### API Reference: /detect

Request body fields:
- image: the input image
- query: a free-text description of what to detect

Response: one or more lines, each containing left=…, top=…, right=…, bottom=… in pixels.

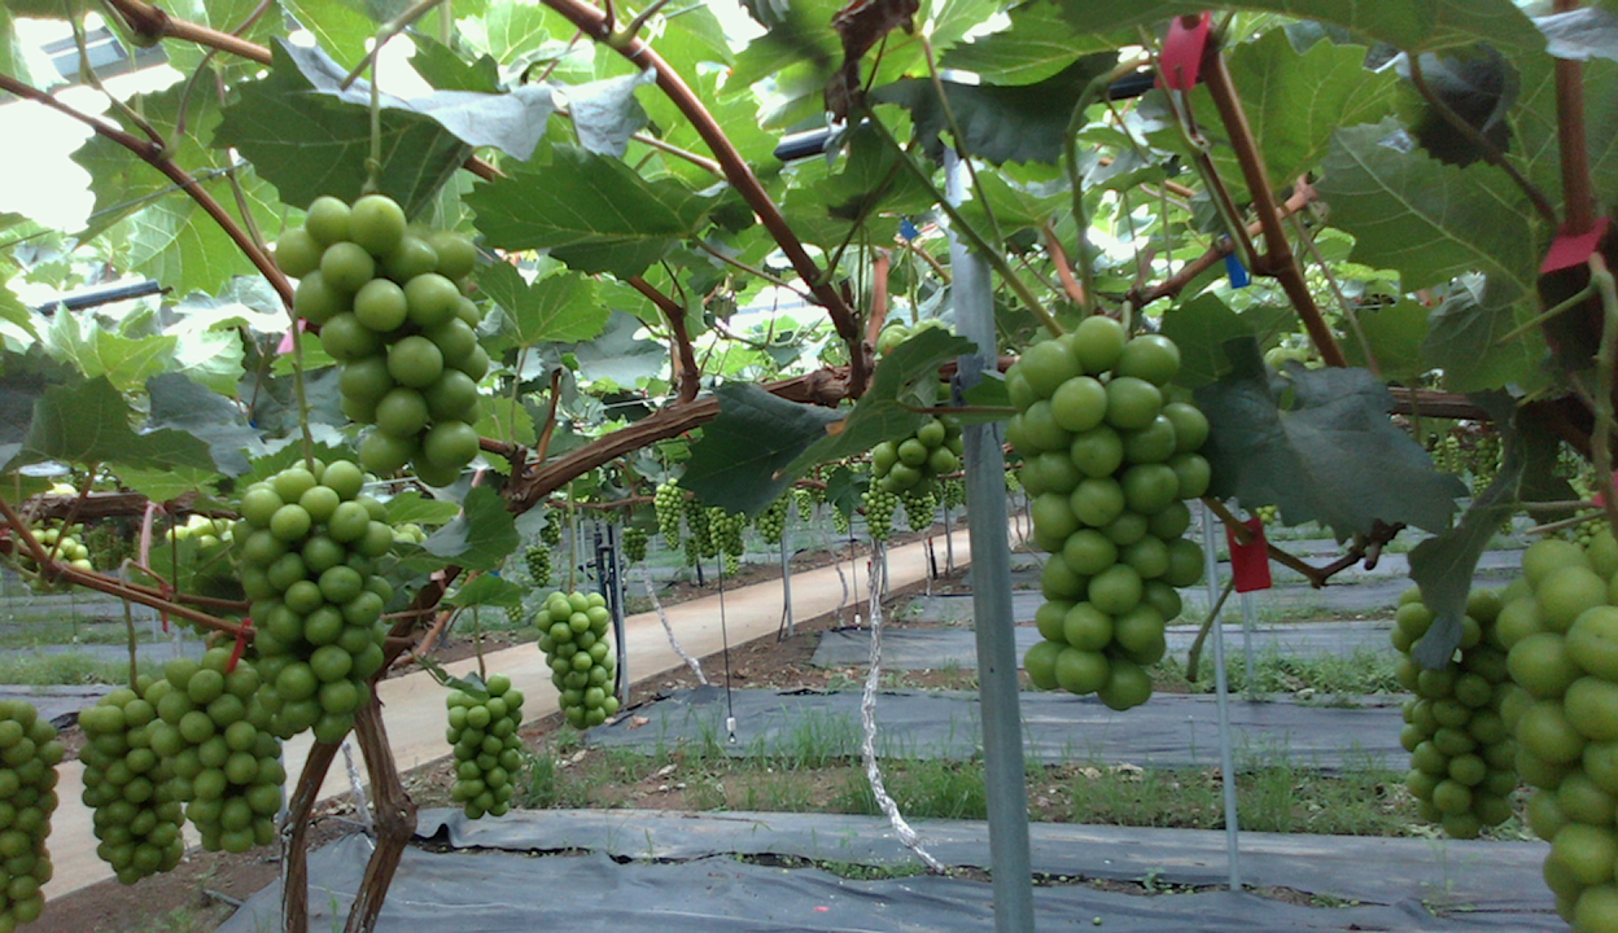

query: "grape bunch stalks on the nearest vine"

left=206, top=631, right=224, bottom=648
left=1588, top=257, right=1617, bottom=533
left=122, top=596, right=143, bottom=697
left=292, top=319, right=315, bottom=472
left=1064, top=57, right=1137, bottom=316
left=367, top=1, right=443, bottom=192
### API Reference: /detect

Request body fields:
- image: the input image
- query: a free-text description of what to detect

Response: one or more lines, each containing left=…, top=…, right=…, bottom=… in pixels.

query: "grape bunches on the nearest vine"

left=76, top=691, right=185, bottom=885
left=235, top=460, right=394, bottom=744
left=145, top=644, right=287, bottom=854
left=276, top=194, right=489, bottom=489
left=0, top=698, right=62, bottom=932
left=1005, top=314, right=1210, bottom=709
left=1499, top=533, right=1617, bottom=932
